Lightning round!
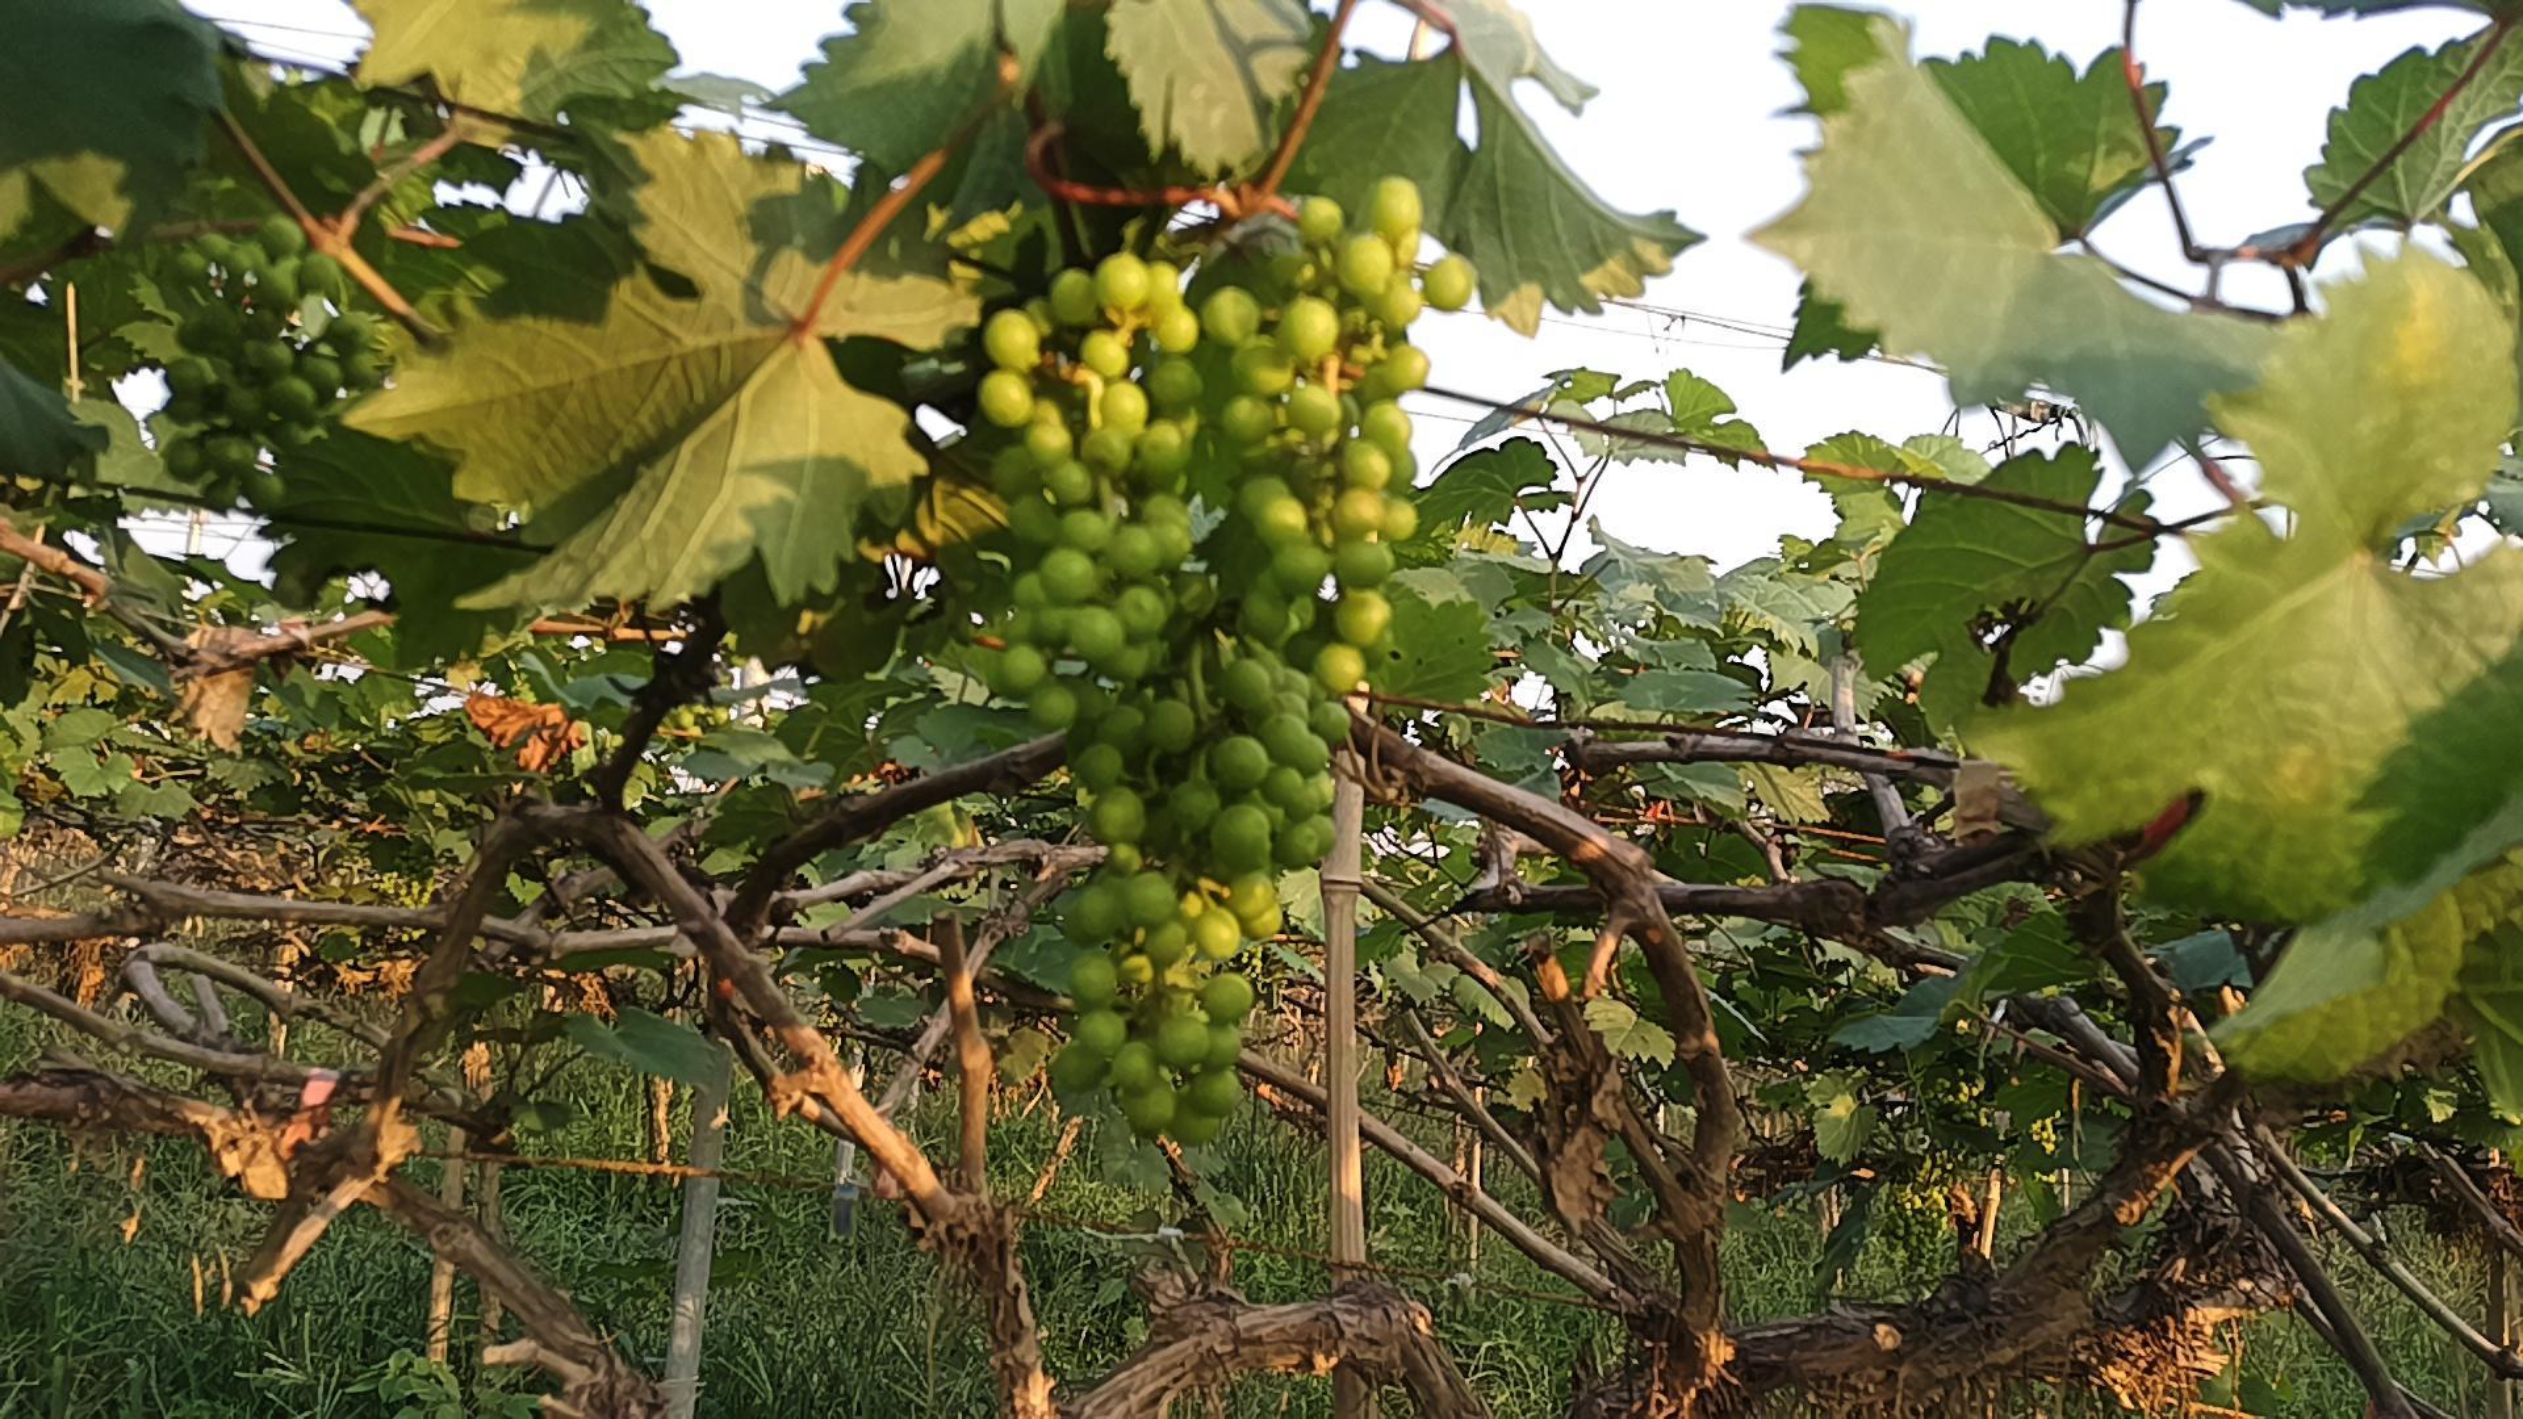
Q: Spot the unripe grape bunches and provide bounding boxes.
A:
[1026,650,1351,1146]
[978,252,1204,691]
[158,210,382,511]
[1200,173,1473,691]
